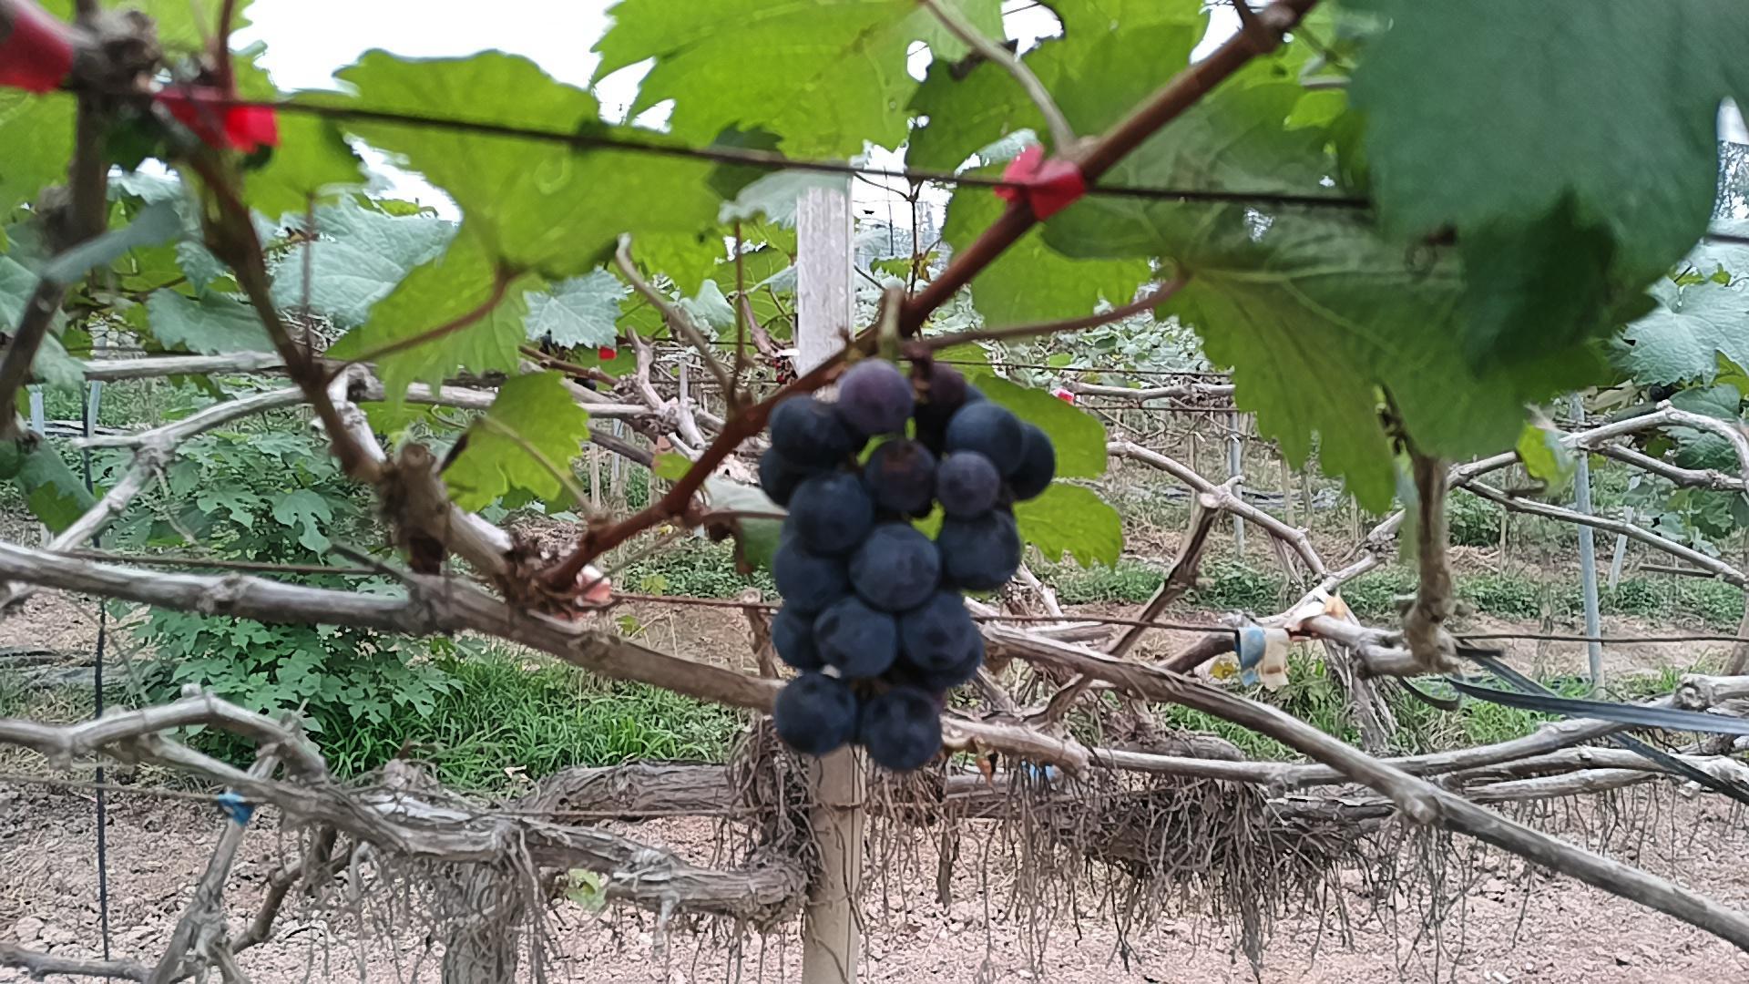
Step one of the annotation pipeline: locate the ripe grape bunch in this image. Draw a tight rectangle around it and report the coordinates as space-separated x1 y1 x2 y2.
761 359 1054 771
